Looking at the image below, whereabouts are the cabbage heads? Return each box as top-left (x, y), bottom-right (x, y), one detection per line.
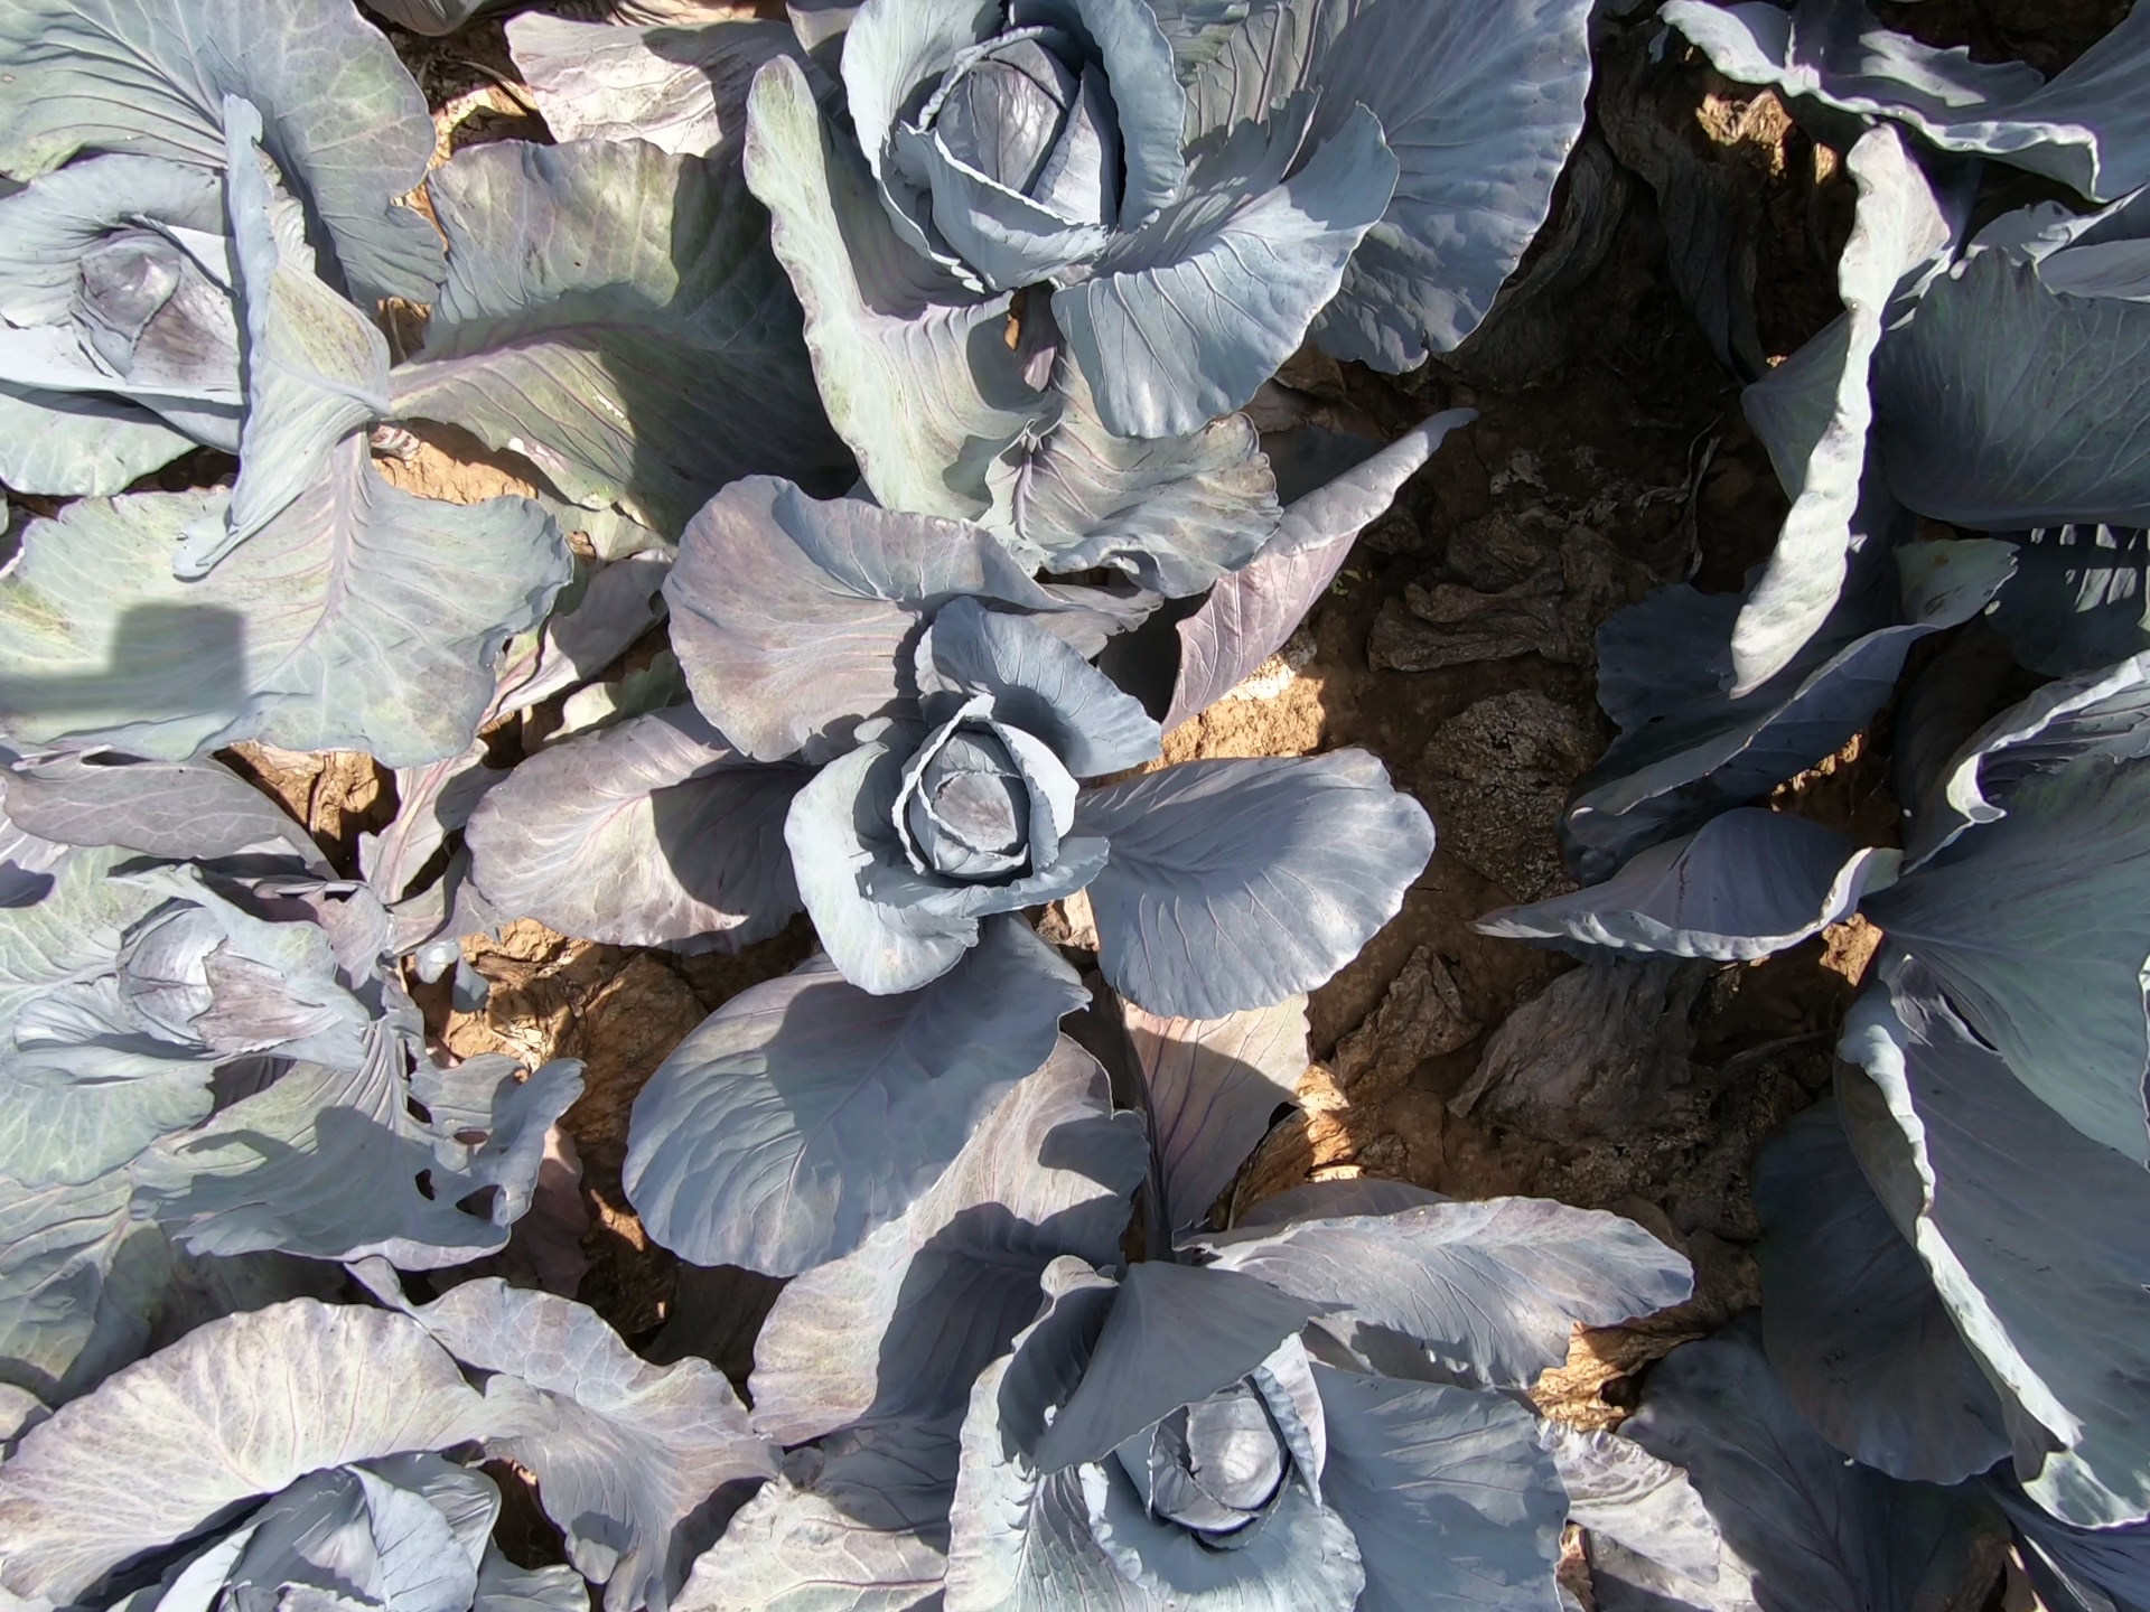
top-left (909, 722), bottom-right (1076, 882)
top-left (1113, 1299), bottom-right (1316, 1534)
top-left (121, 892), bottom-right (334, 1046)
top-left (931, 36), bottom-right (1120, 274)
top-left (78, 232), bottom-right (355, 456)
top-left (217, 1450), bottom-right (479, 1609)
